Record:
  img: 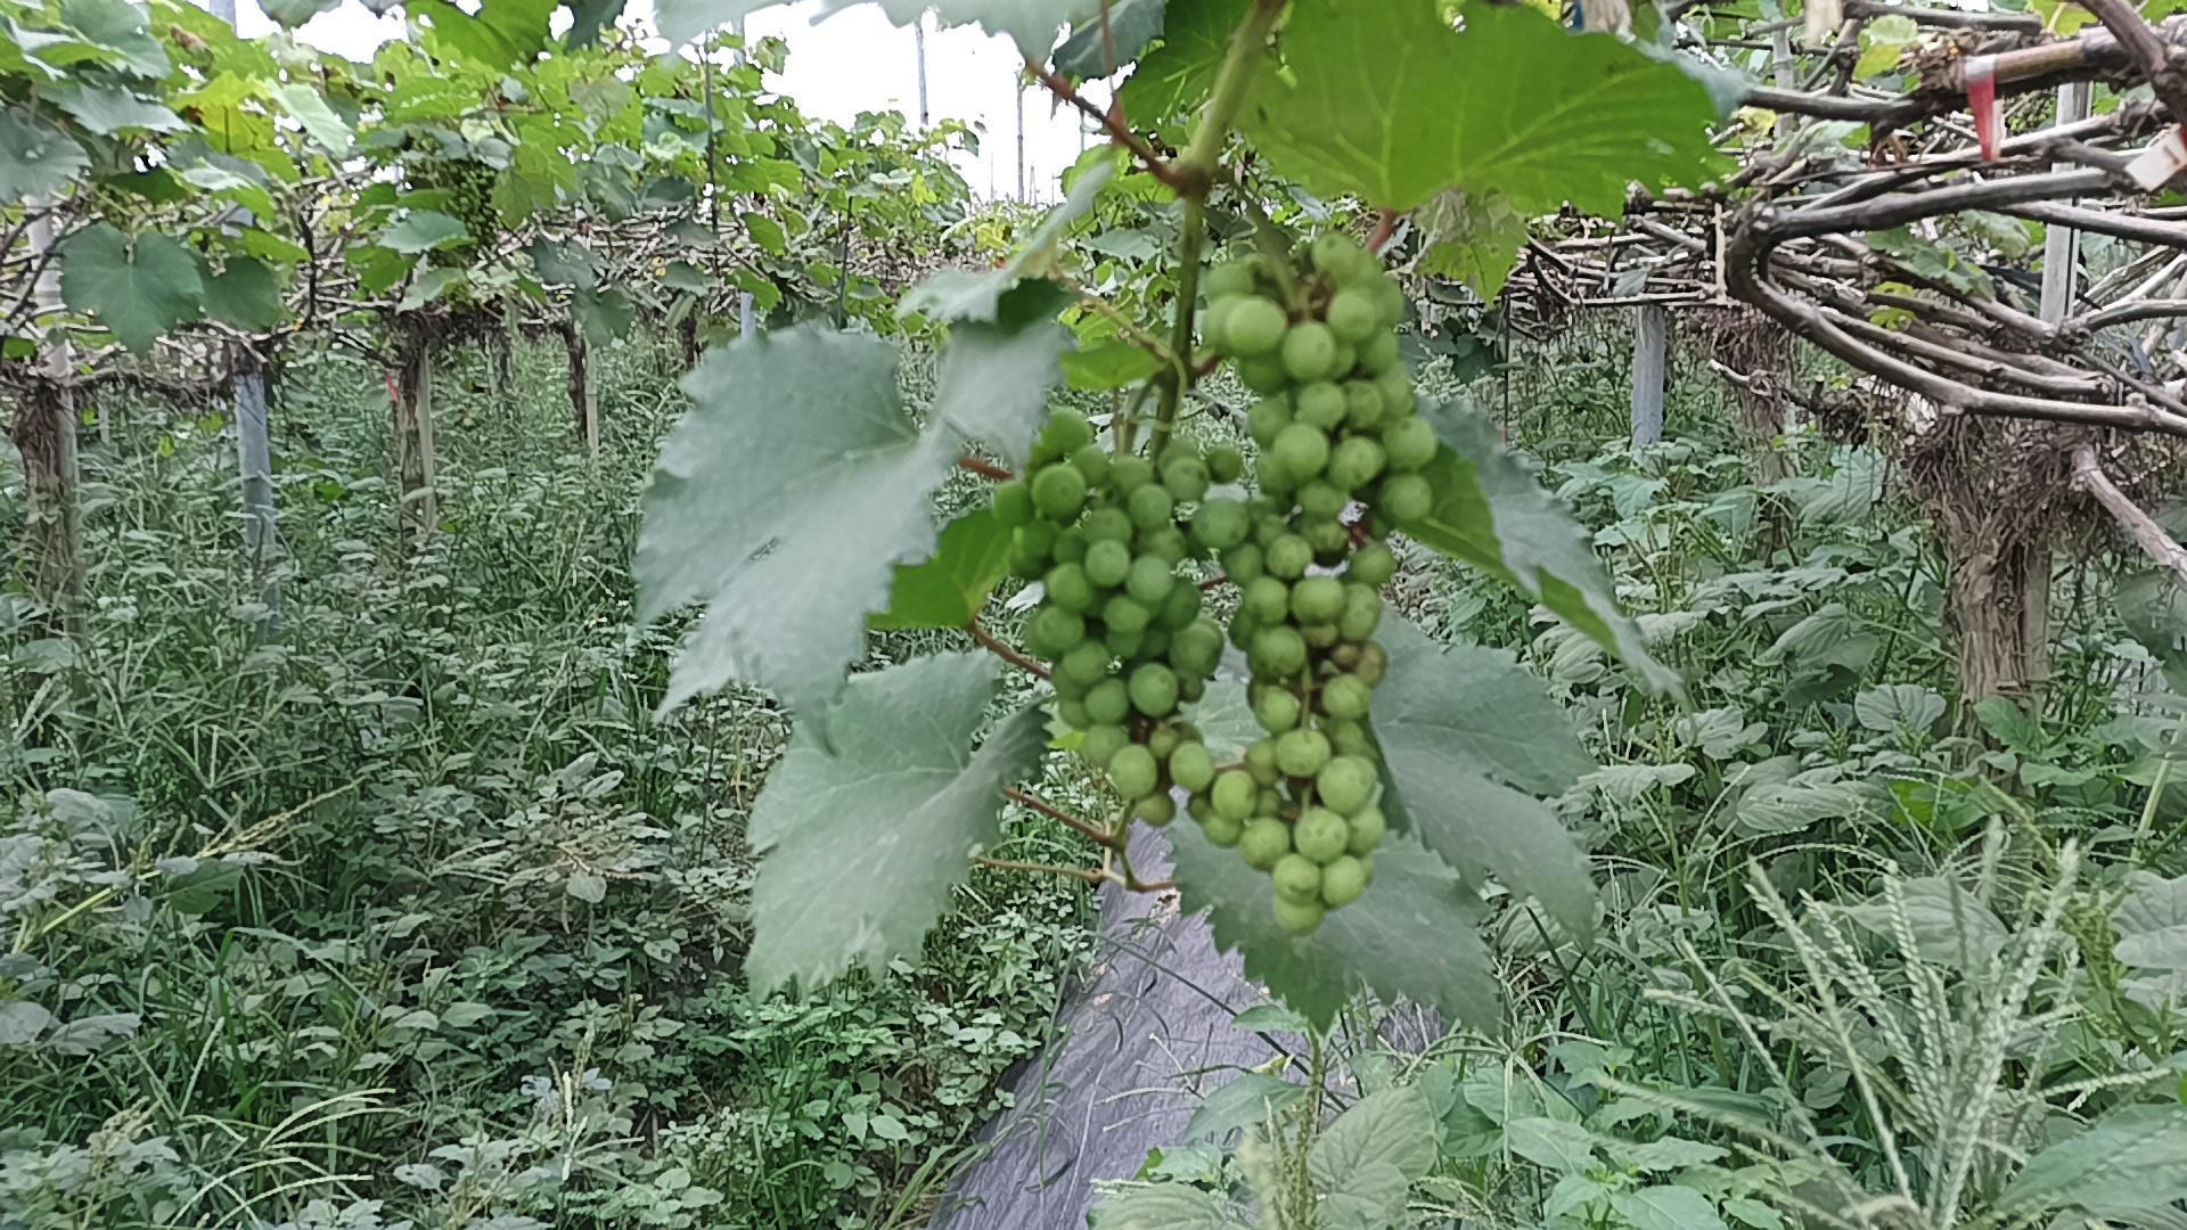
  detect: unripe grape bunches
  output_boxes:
[994,412,1239,823]
[1187,231,1434,933]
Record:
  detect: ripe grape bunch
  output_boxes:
[409,156,499,268]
